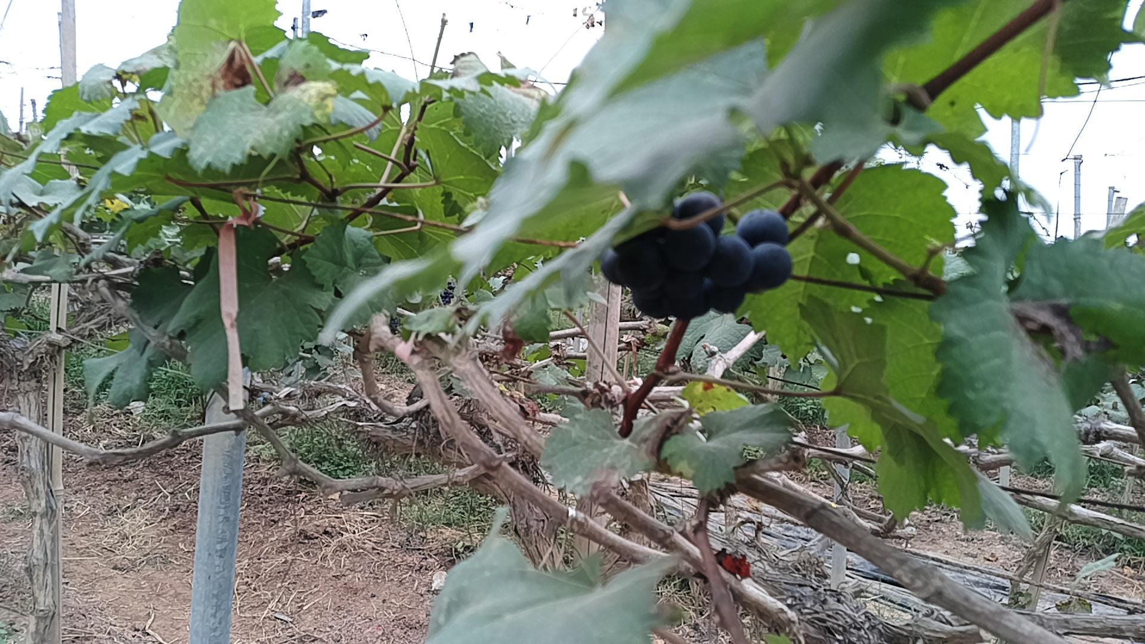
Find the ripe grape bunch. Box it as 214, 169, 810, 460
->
601, 191, 792, 321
